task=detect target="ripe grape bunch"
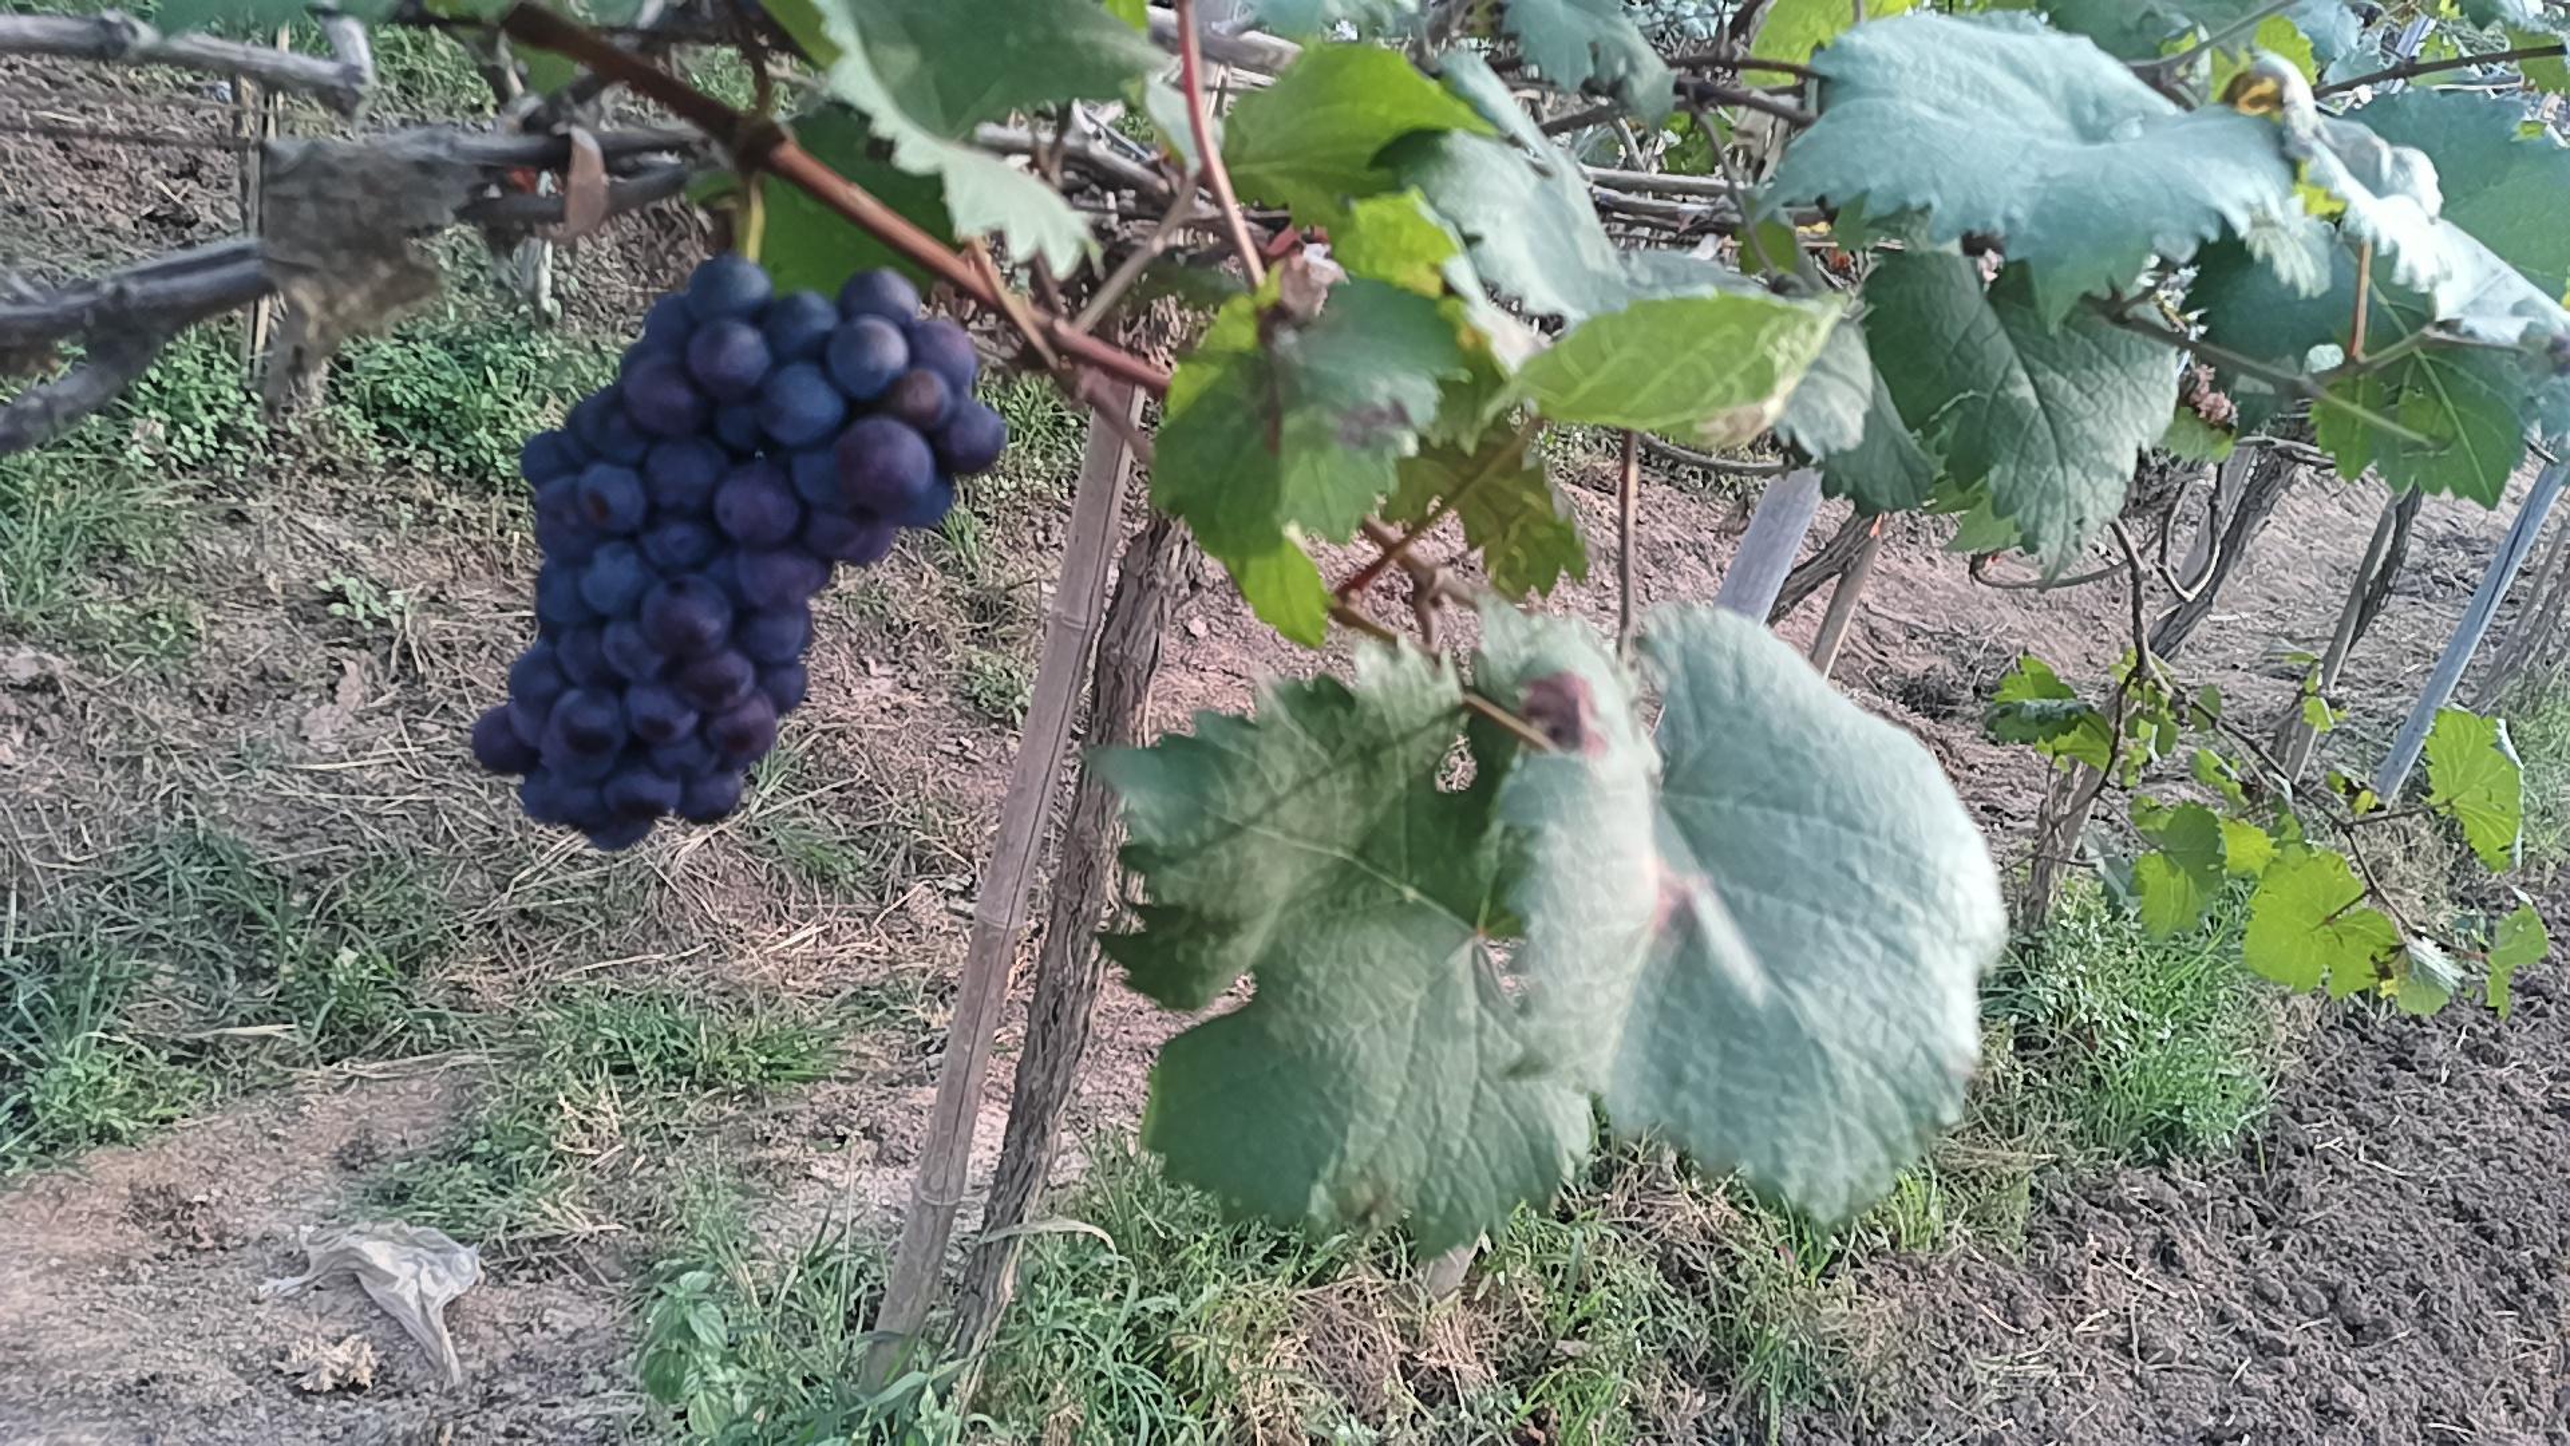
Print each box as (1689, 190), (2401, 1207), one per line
(473, 256), (1005, 849)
